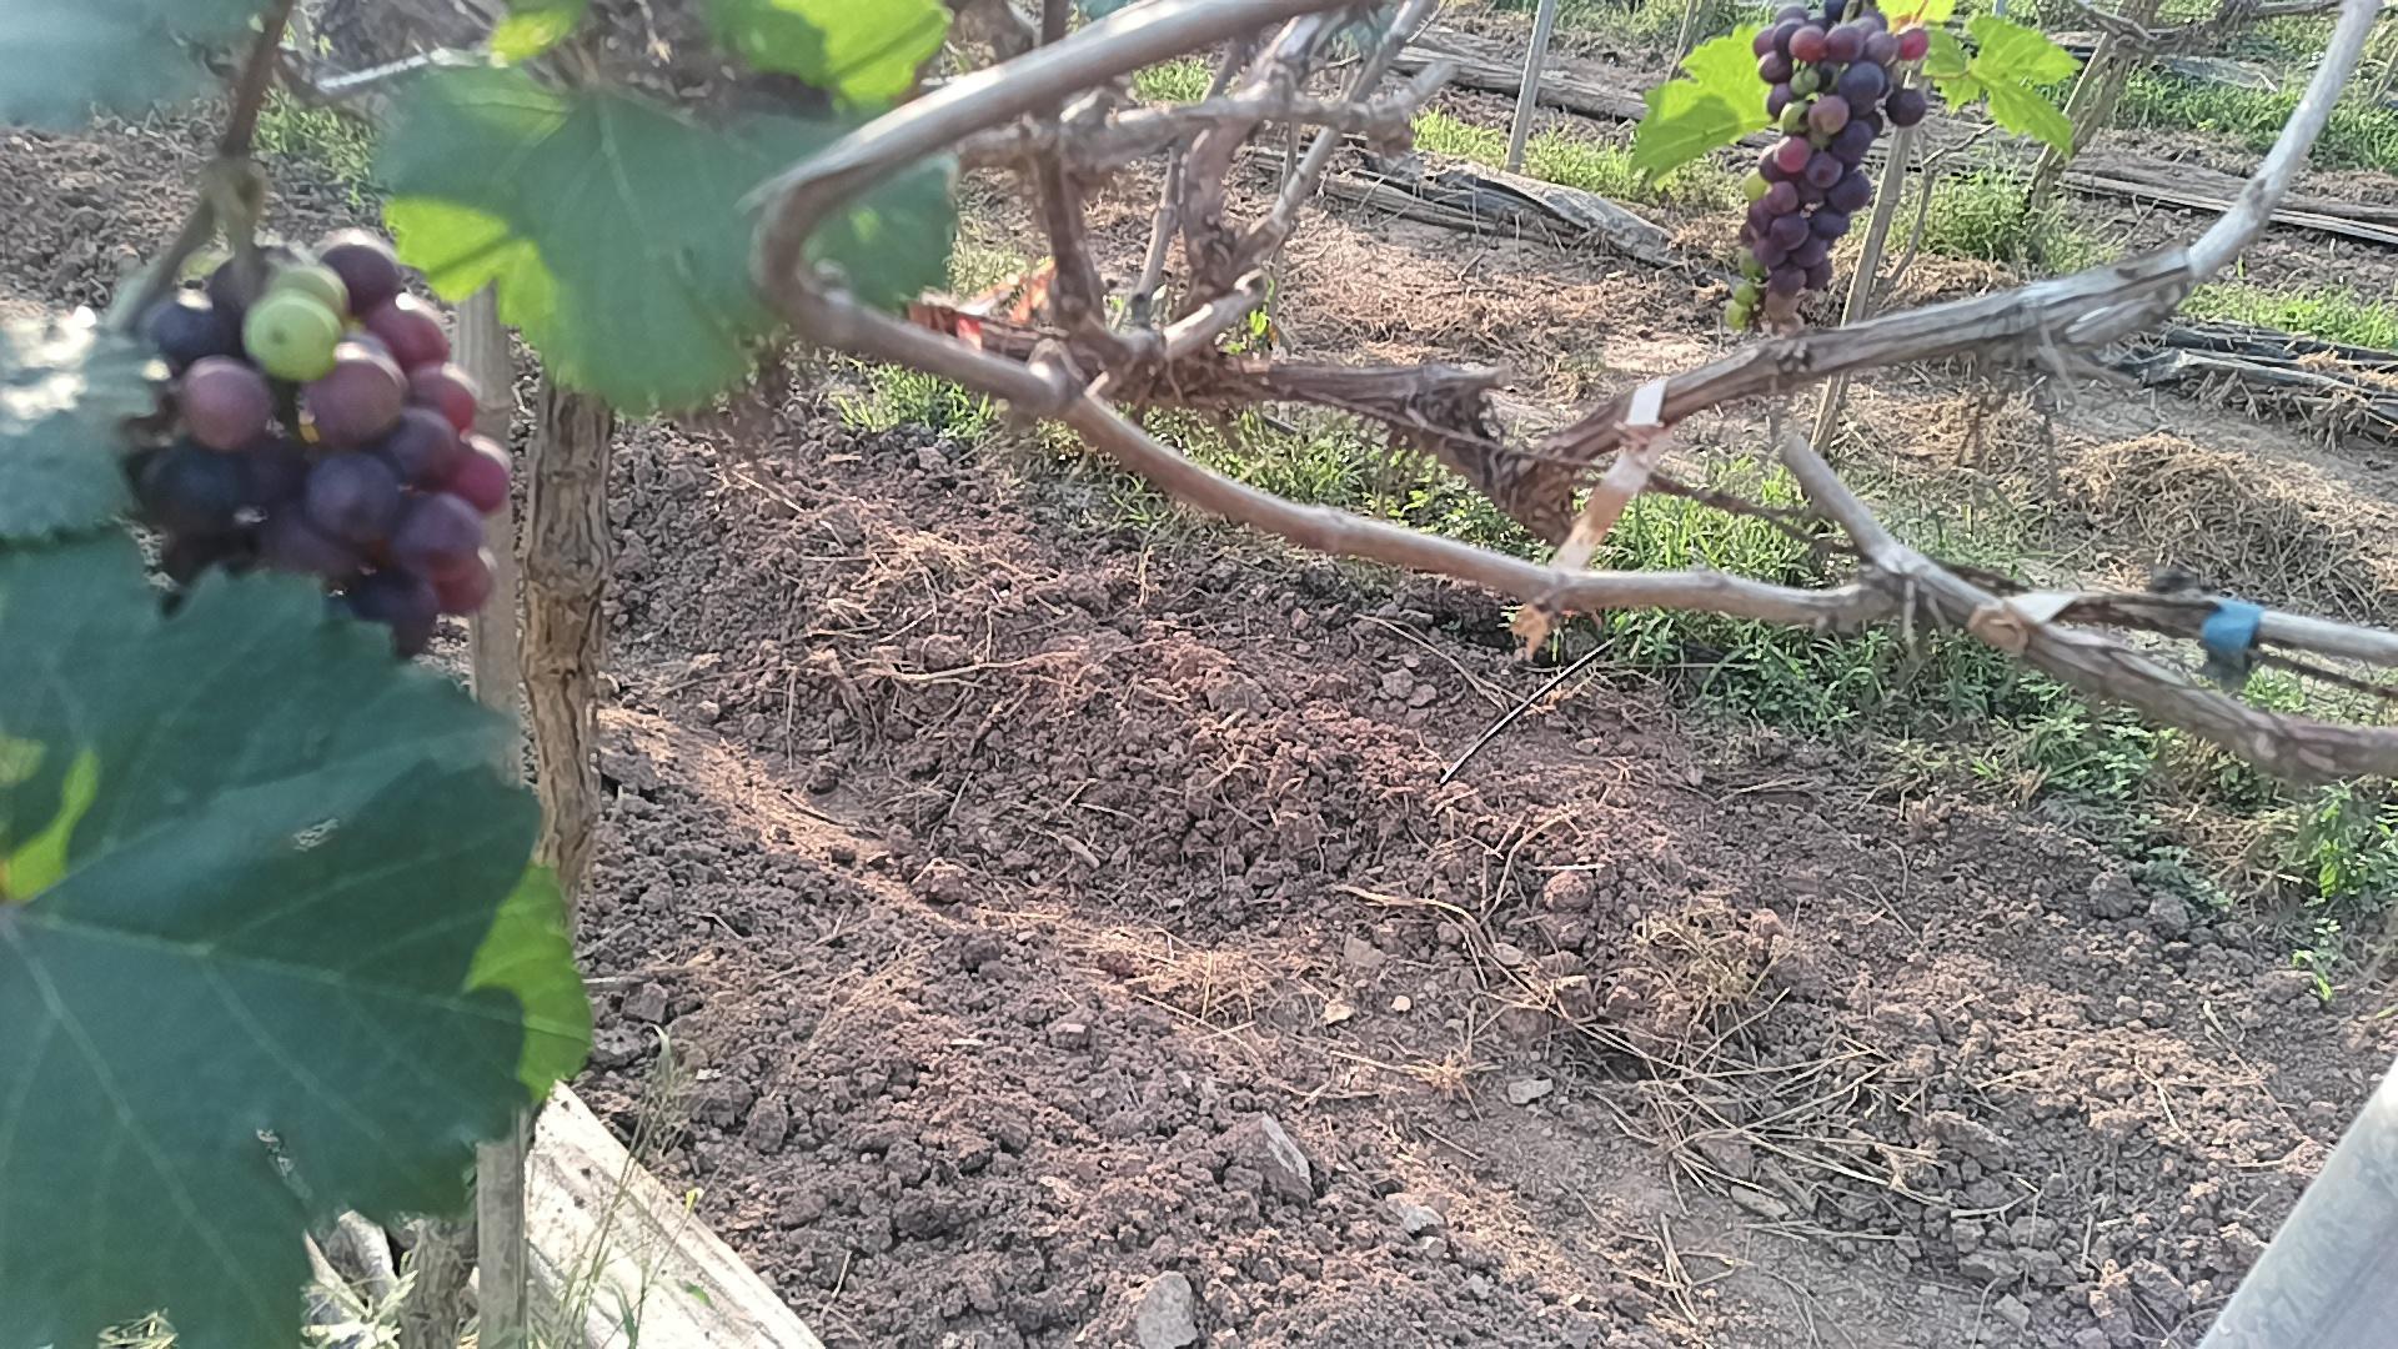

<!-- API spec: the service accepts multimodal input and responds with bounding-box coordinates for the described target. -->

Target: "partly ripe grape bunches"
[1724,0,1928,330]
[124,230,510,657]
